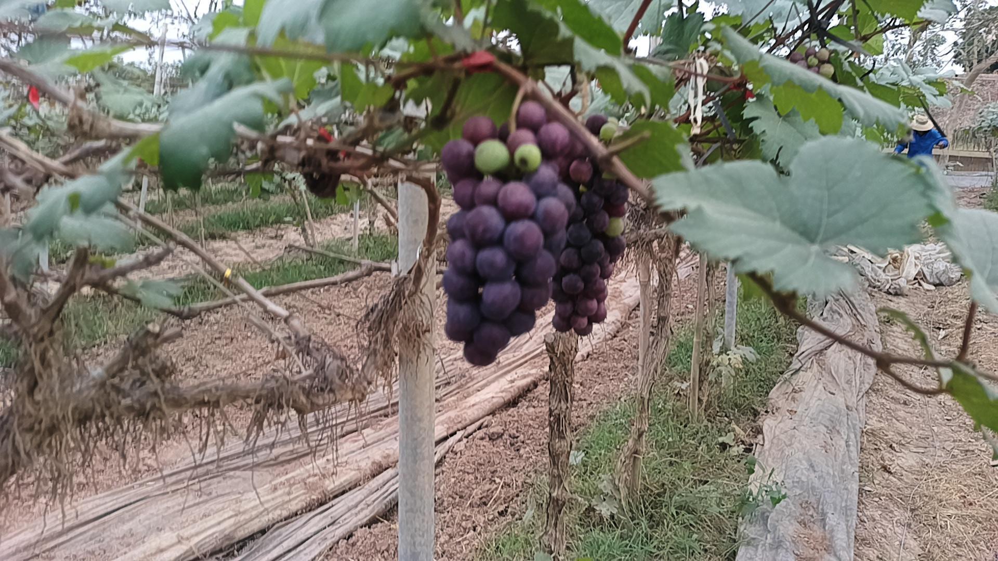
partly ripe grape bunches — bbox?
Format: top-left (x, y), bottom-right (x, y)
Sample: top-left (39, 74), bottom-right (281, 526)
top-left (552, 117), bottom-right (627, 337)
top-left (789, 48), bottom-right (833, 78)
top-left (441, 101), bottom-right (593, 366)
